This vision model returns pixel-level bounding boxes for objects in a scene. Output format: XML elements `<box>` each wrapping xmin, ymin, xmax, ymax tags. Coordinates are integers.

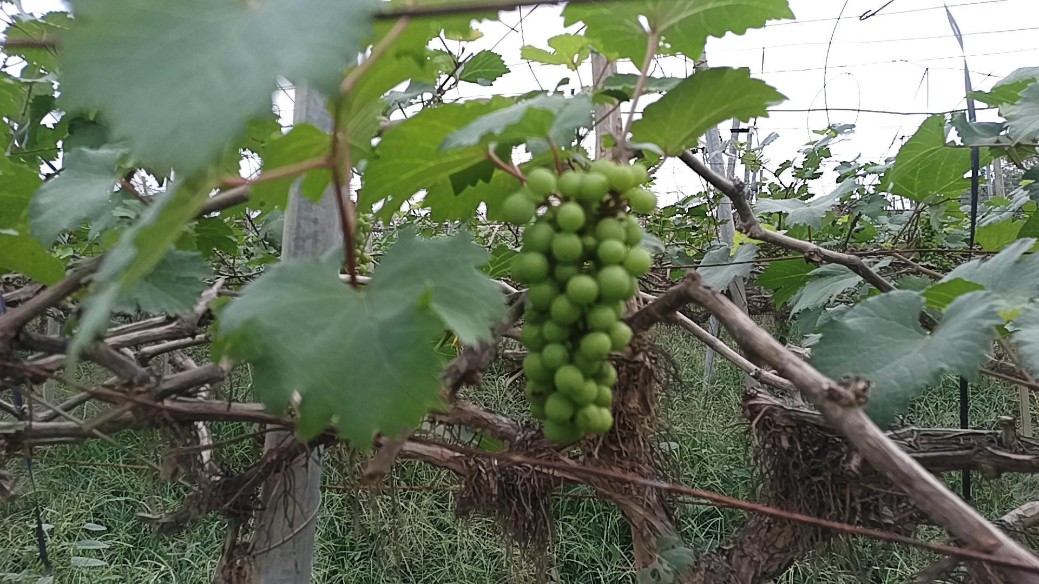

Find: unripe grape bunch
<box><xmin>503</xmin><ymin>161</ymin><xmax>655</xmax><ymax>442</ymax></box>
